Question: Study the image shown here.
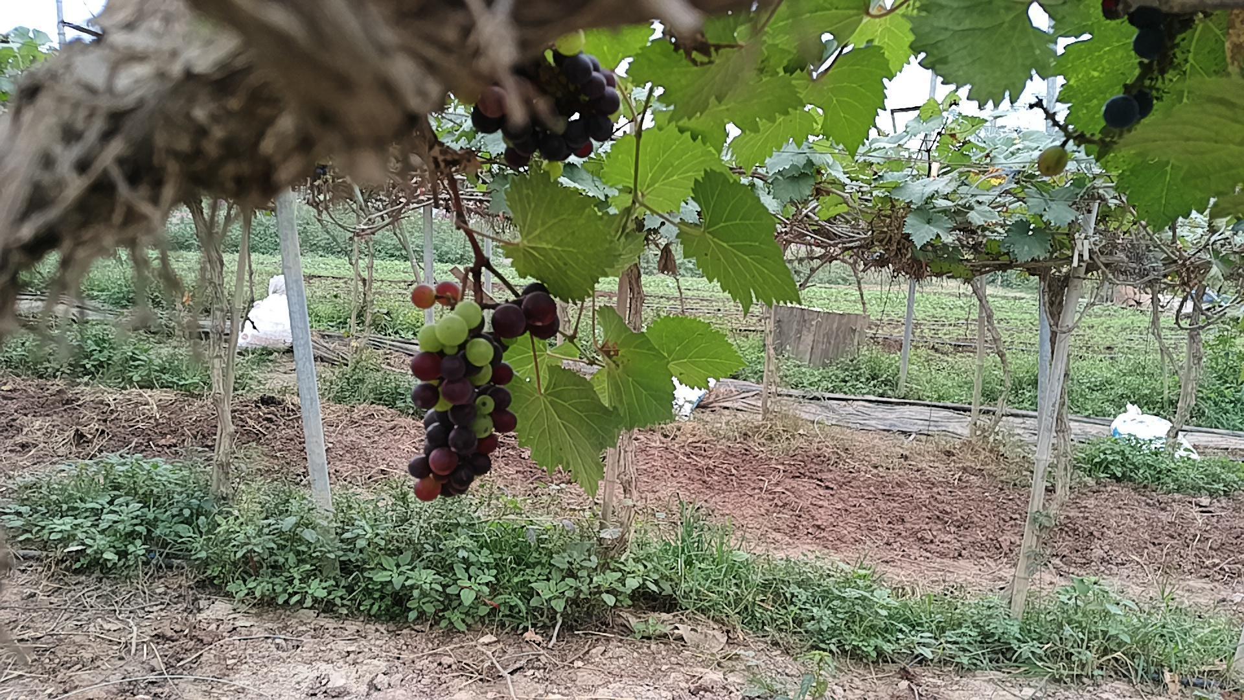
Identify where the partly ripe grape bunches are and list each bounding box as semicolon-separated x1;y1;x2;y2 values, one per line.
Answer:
1037;5;1199;176
471;29;620;169
408;280;560;500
